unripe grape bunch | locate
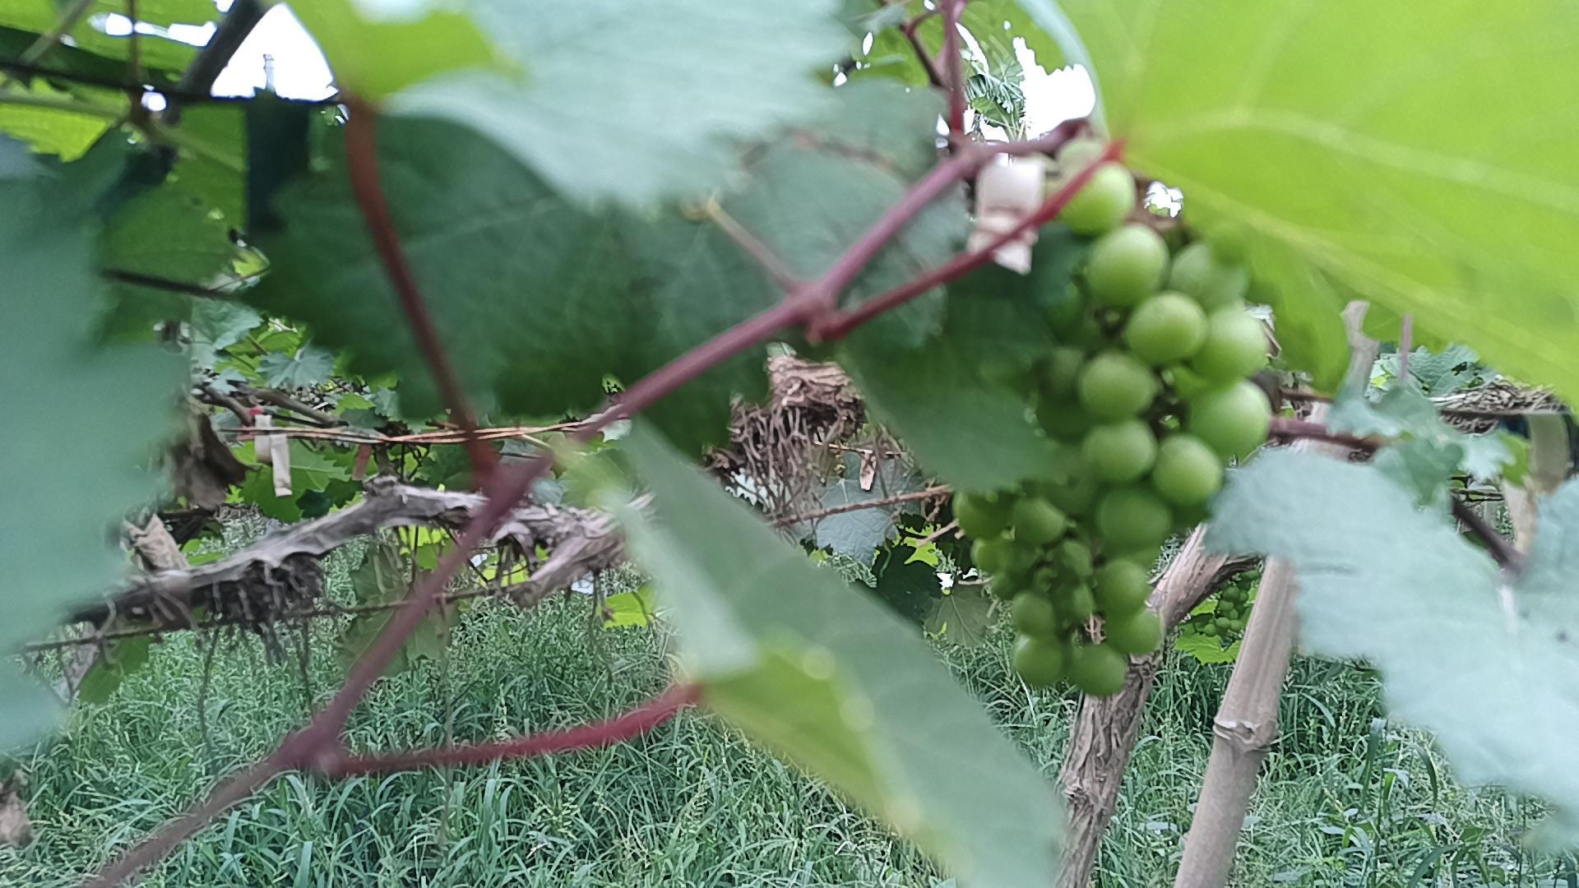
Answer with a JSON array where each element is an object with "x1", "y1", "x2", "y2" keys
[{"x1": 955, "y1": 130, "x2": 1271, "y2": 695}]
